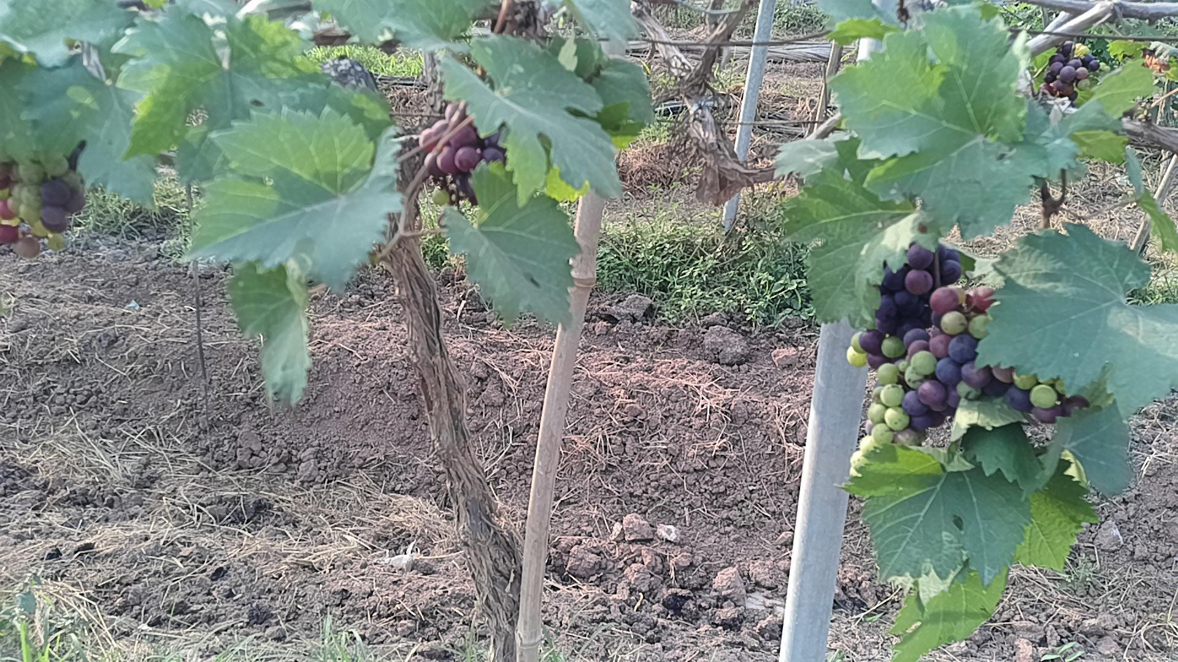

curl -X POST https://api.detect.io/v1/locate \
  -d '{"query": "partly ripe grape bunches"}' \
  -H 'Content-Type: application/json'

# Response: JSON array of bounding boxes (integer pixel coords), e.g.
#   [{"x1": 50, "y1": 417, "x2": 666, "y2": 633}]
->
[
  {"x1": 851, "y1": 285, "x2": 1088, "y2": 476},
  {"x1": 420, "y1": 103, "x2": 507, "y2": 205},
  {"x1": 0, "y1": 141, "x2": 85, "y2": 258},
  {"x1": 1038, "y1": 39, "x2": 1111, "y2": 108},
  {"x1": 849, "y1": 243, "x2": 962, "y2": 368}
]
